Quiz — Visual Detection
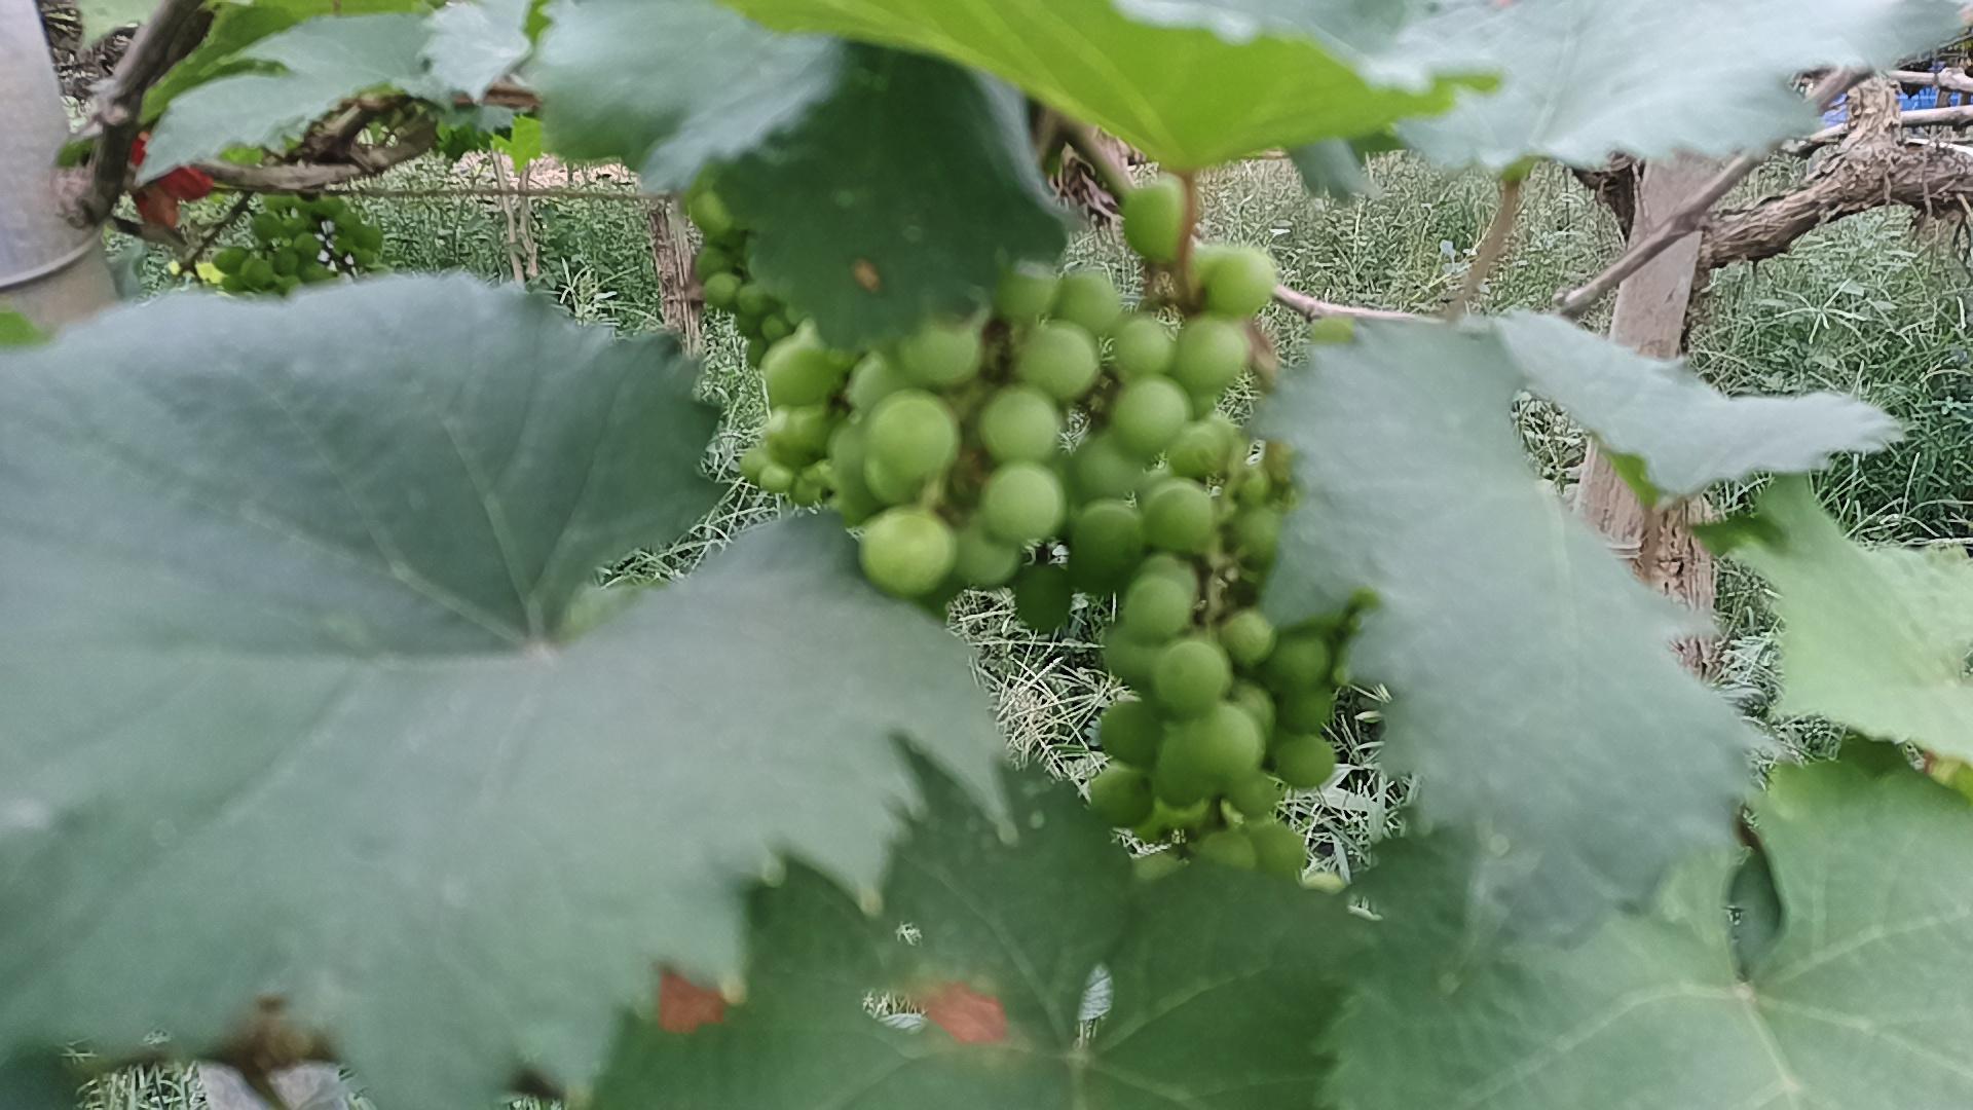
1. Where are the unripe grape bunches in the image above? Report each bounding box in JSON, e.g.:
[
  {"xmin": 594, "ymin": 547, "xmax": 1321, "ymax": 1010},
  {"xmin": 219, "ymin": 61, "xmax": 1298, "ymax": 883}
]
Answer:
[
  {"xmin": 683, "ymin": 161, "xmax": 799, "ymax": 367},
  {"xmin": 212, "ymin": 195, "xmax": 383, "ymax": 296},
  {"xmin": 738, "ymin": 174, "xmax": 1350, "ymax": 895}
]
